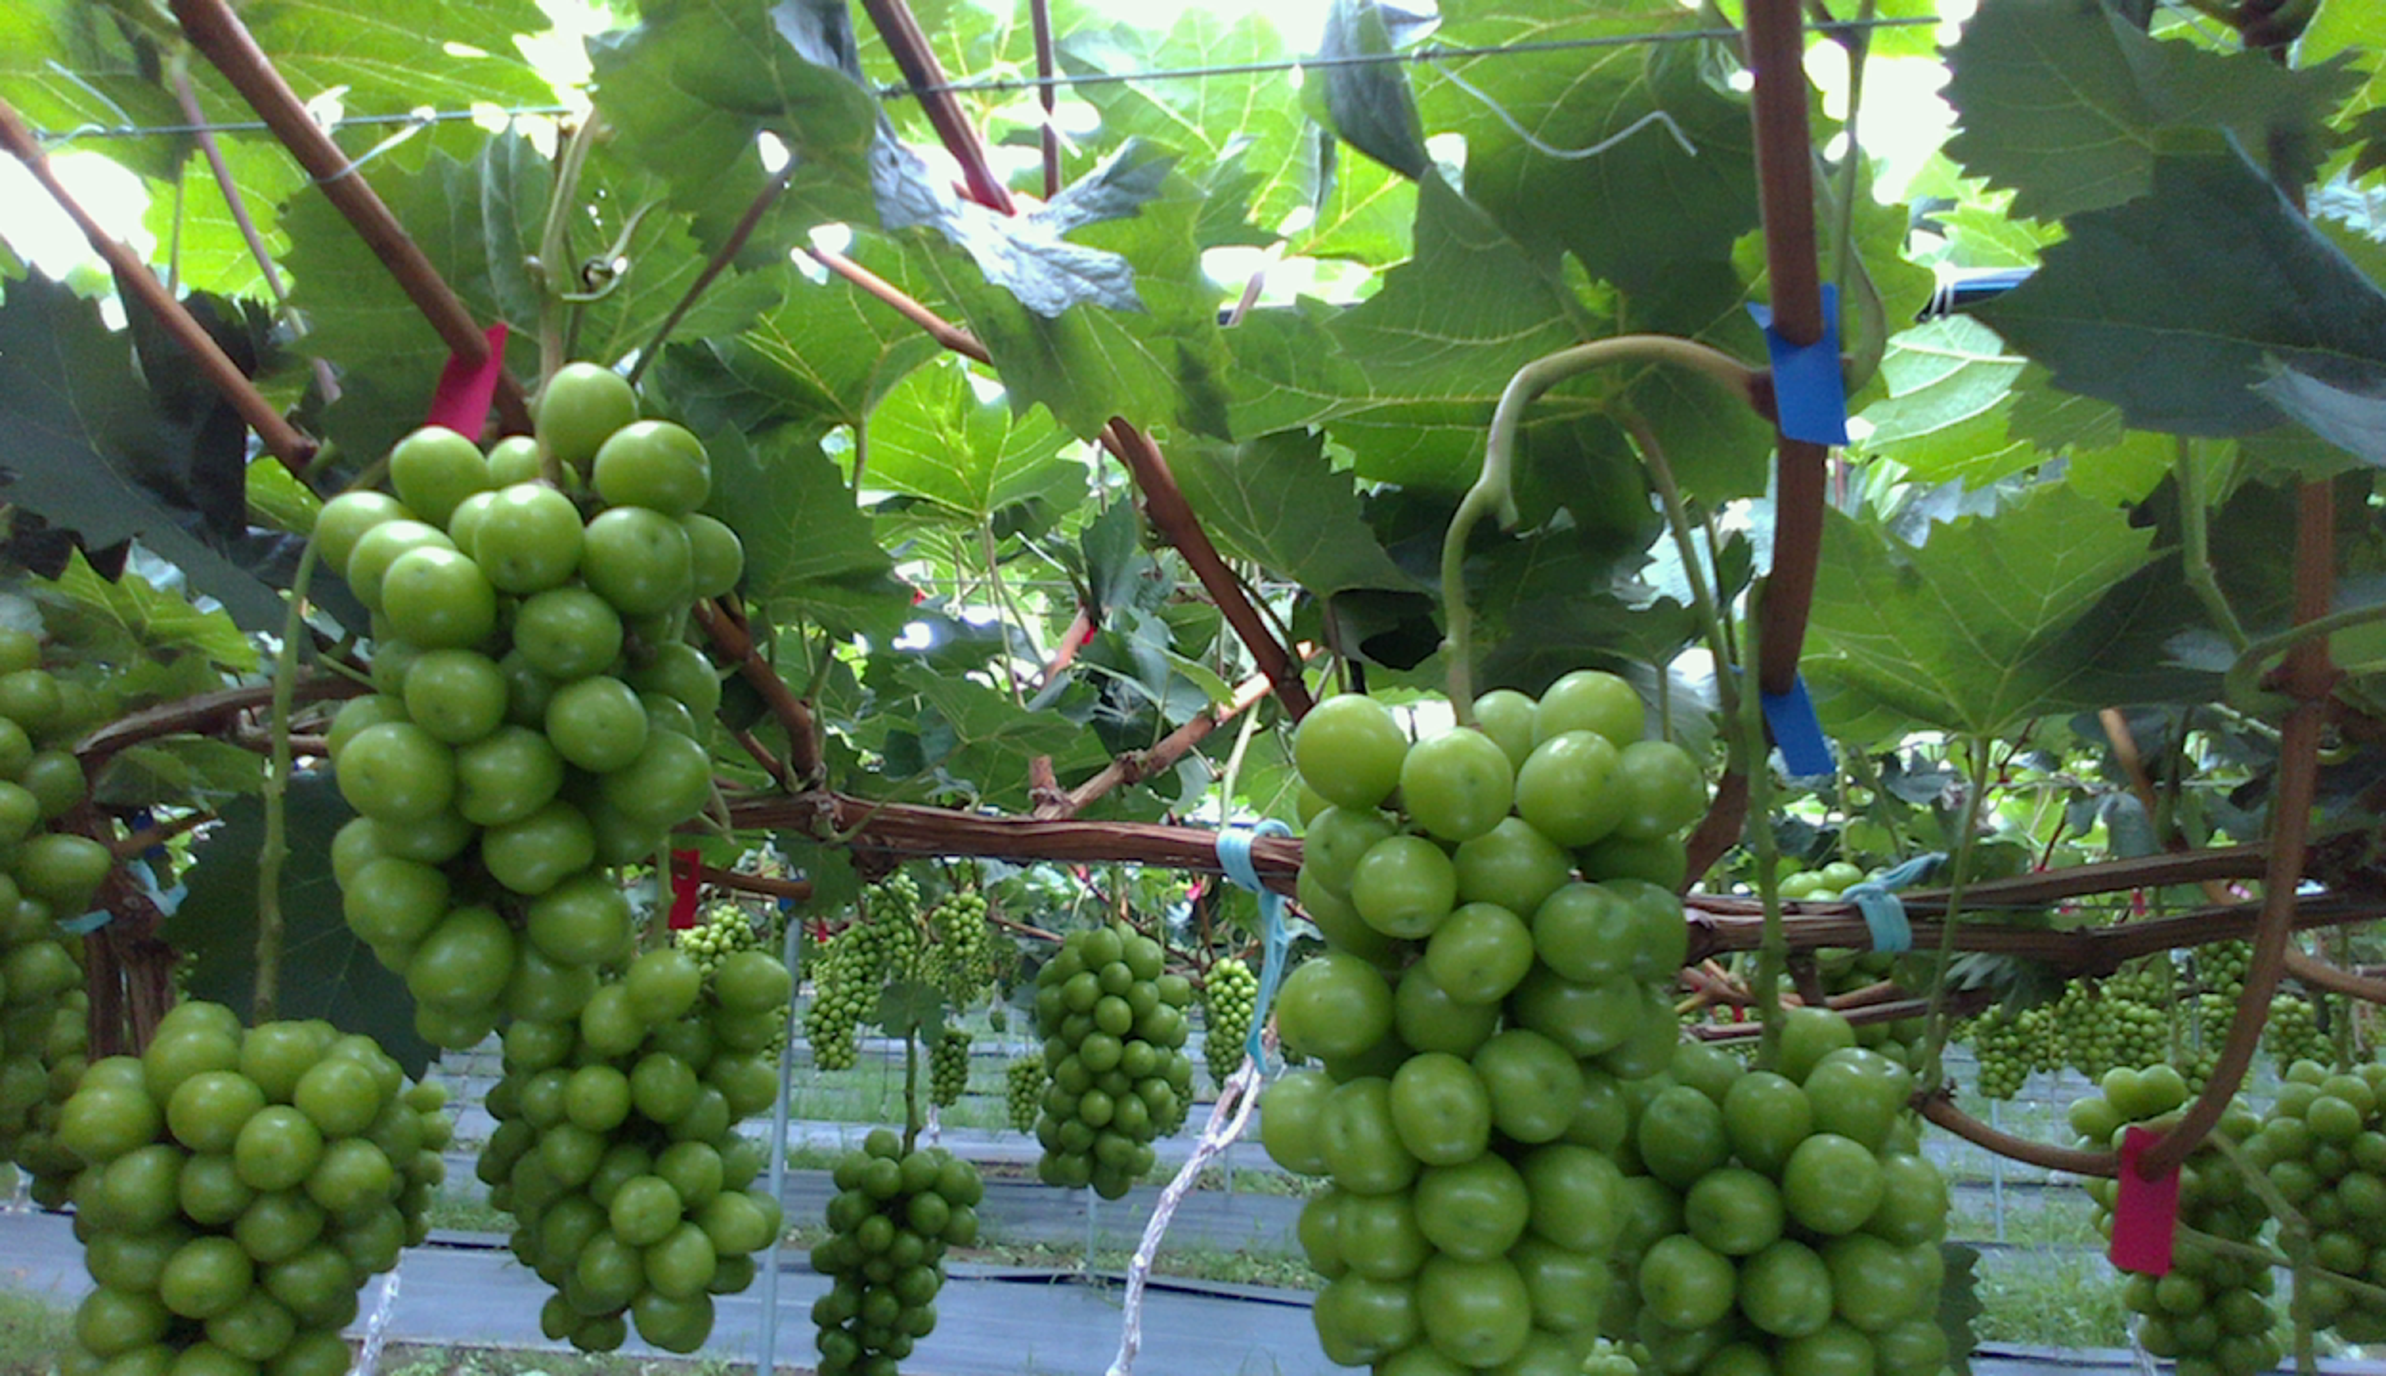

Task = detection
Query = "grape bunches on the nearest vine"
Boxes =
[57,1000,424,1374]
[480,948,792,1353]
[1260,669,1703,1374]
[1596,1003,1950,1372]
[0,631,113,1158]
[310,359,746,1047]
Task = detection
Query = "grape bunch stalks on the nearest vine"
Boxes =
[1440,334,1749,734]
[254,547,317,1026]
[1736,577,1788,1070]
[535,103,600,487]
